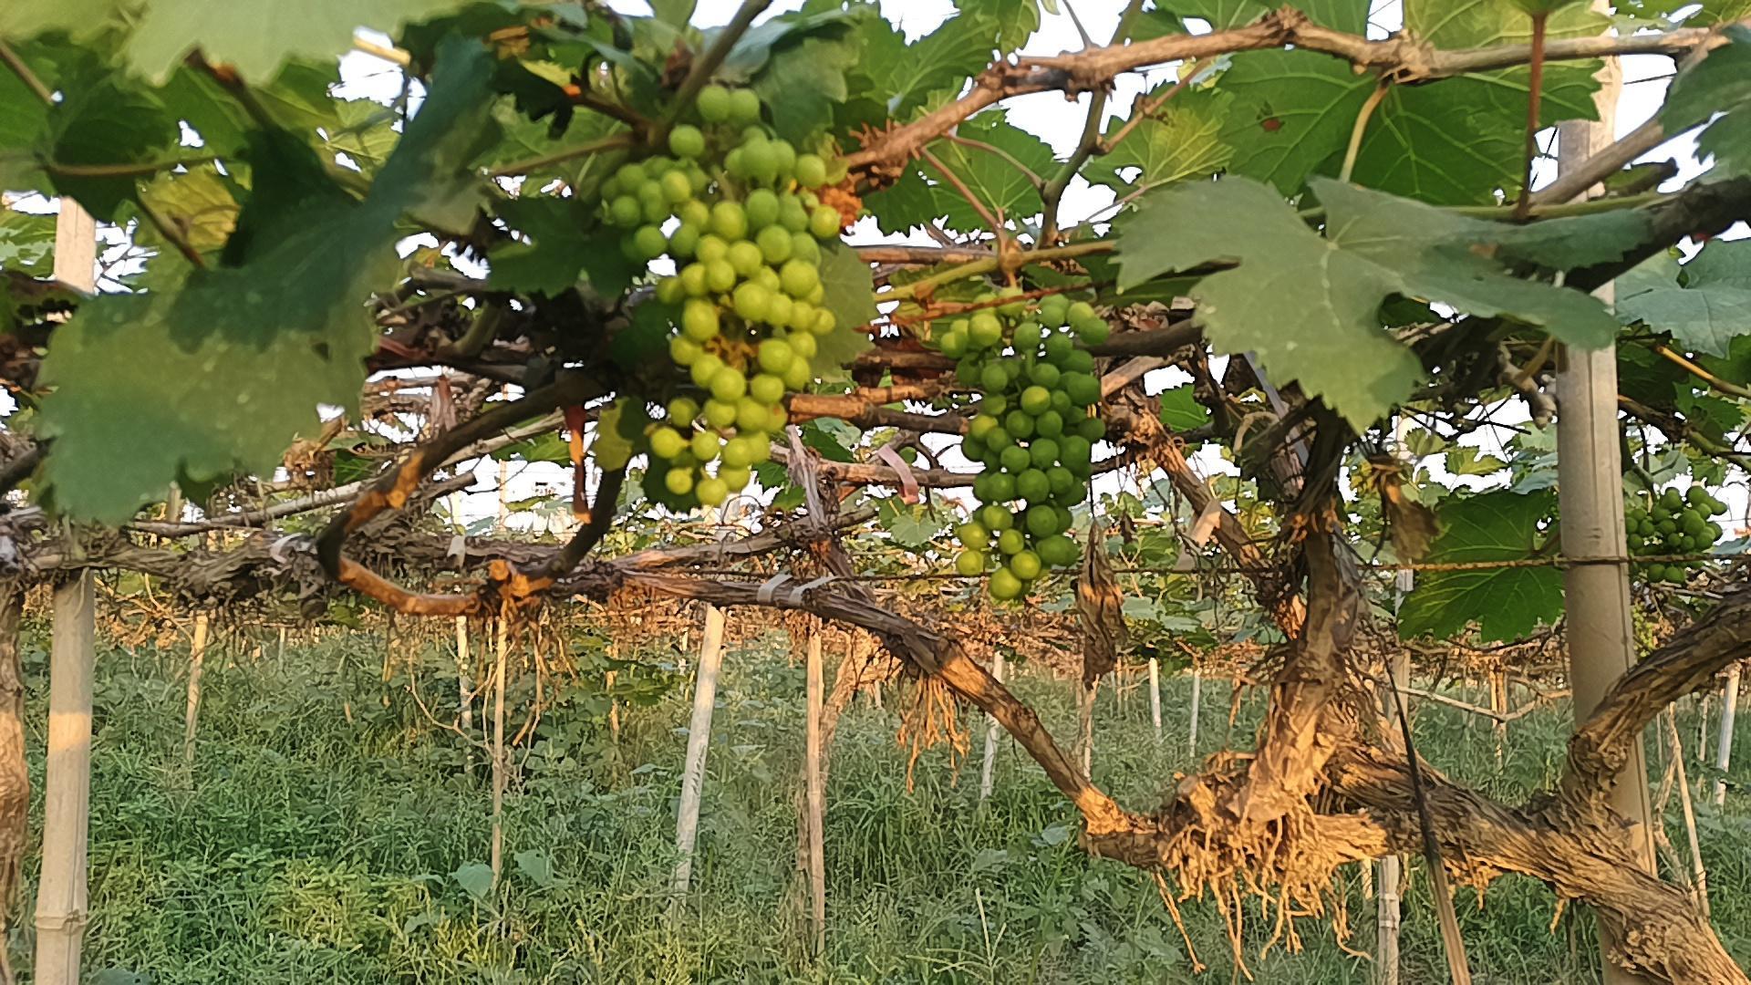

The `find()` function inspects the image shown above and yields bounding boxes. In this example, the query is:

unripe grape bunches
[582,84,843,505]
[1623,485,1727,585]
[939,285,1112,601]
